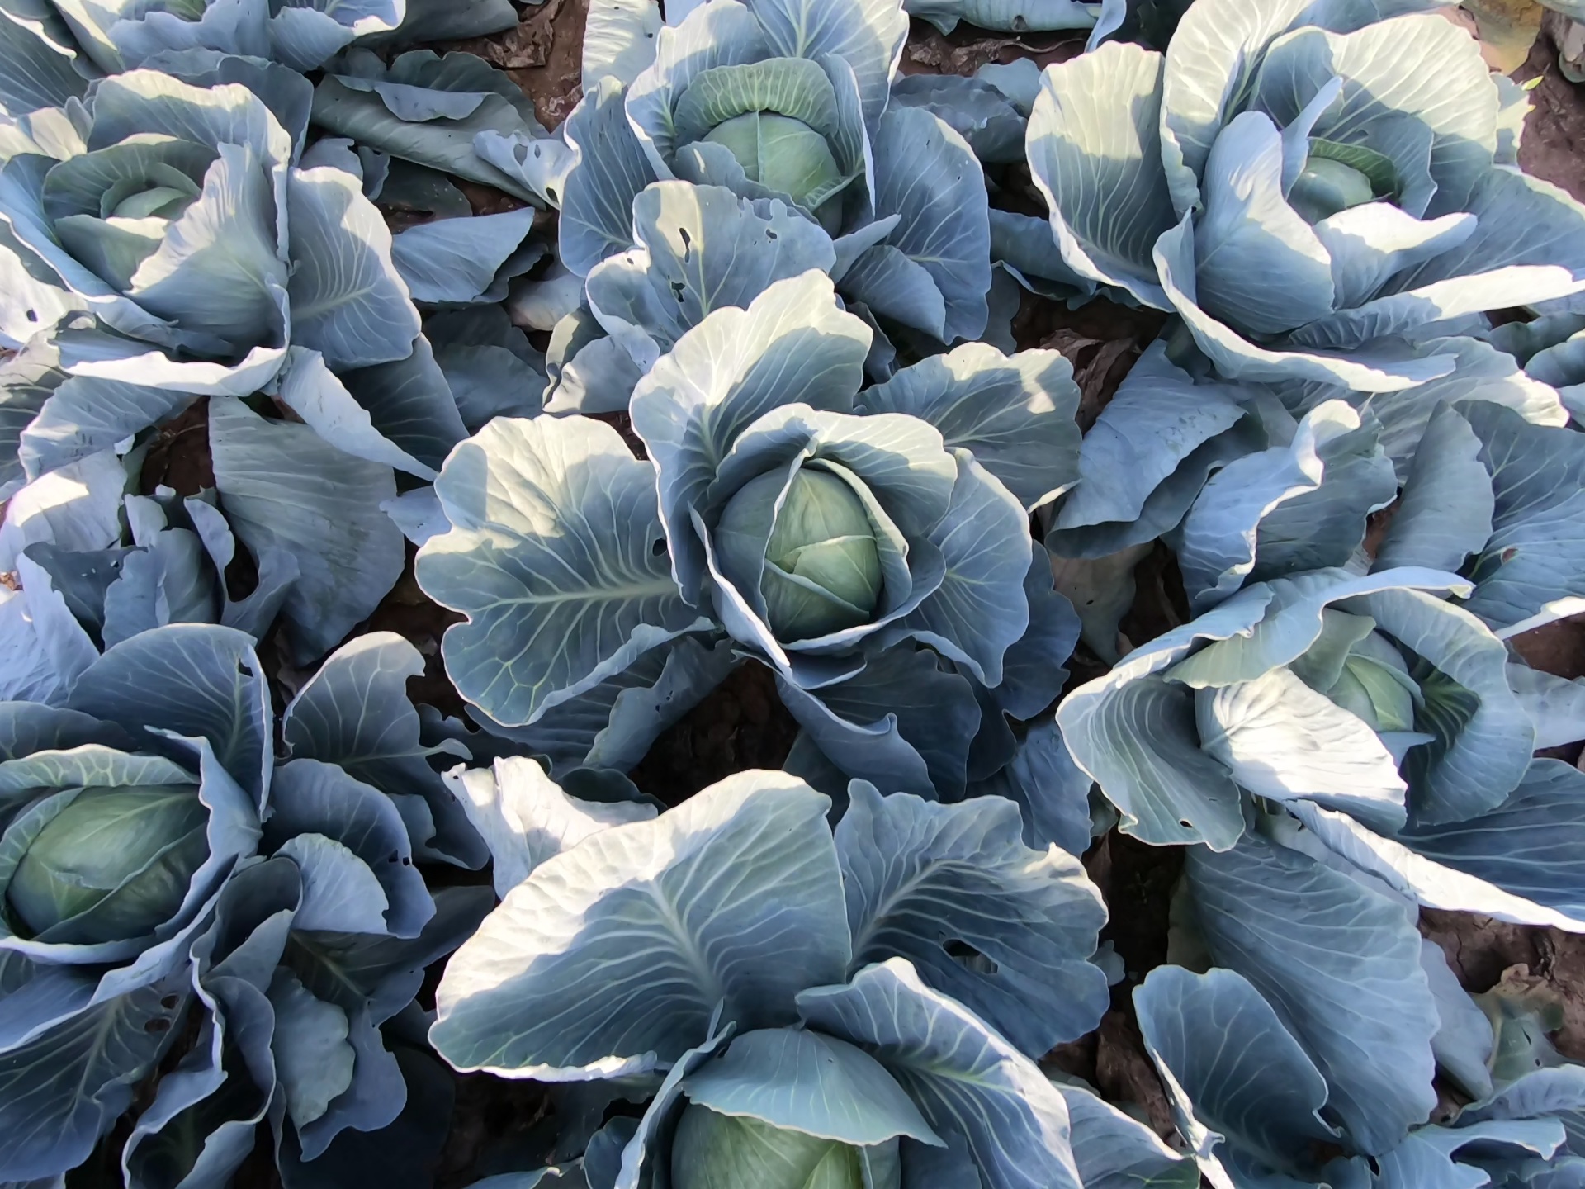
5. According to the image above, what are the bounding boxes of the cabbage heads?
[1223,604,1420,805]
[691,107,847,259]
[7,769,232,946]
[1243,151,1386,308]
[64,2,269,92]
[708,463,885,639]
[95,182,239,310]
[669,1044,903,1187]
